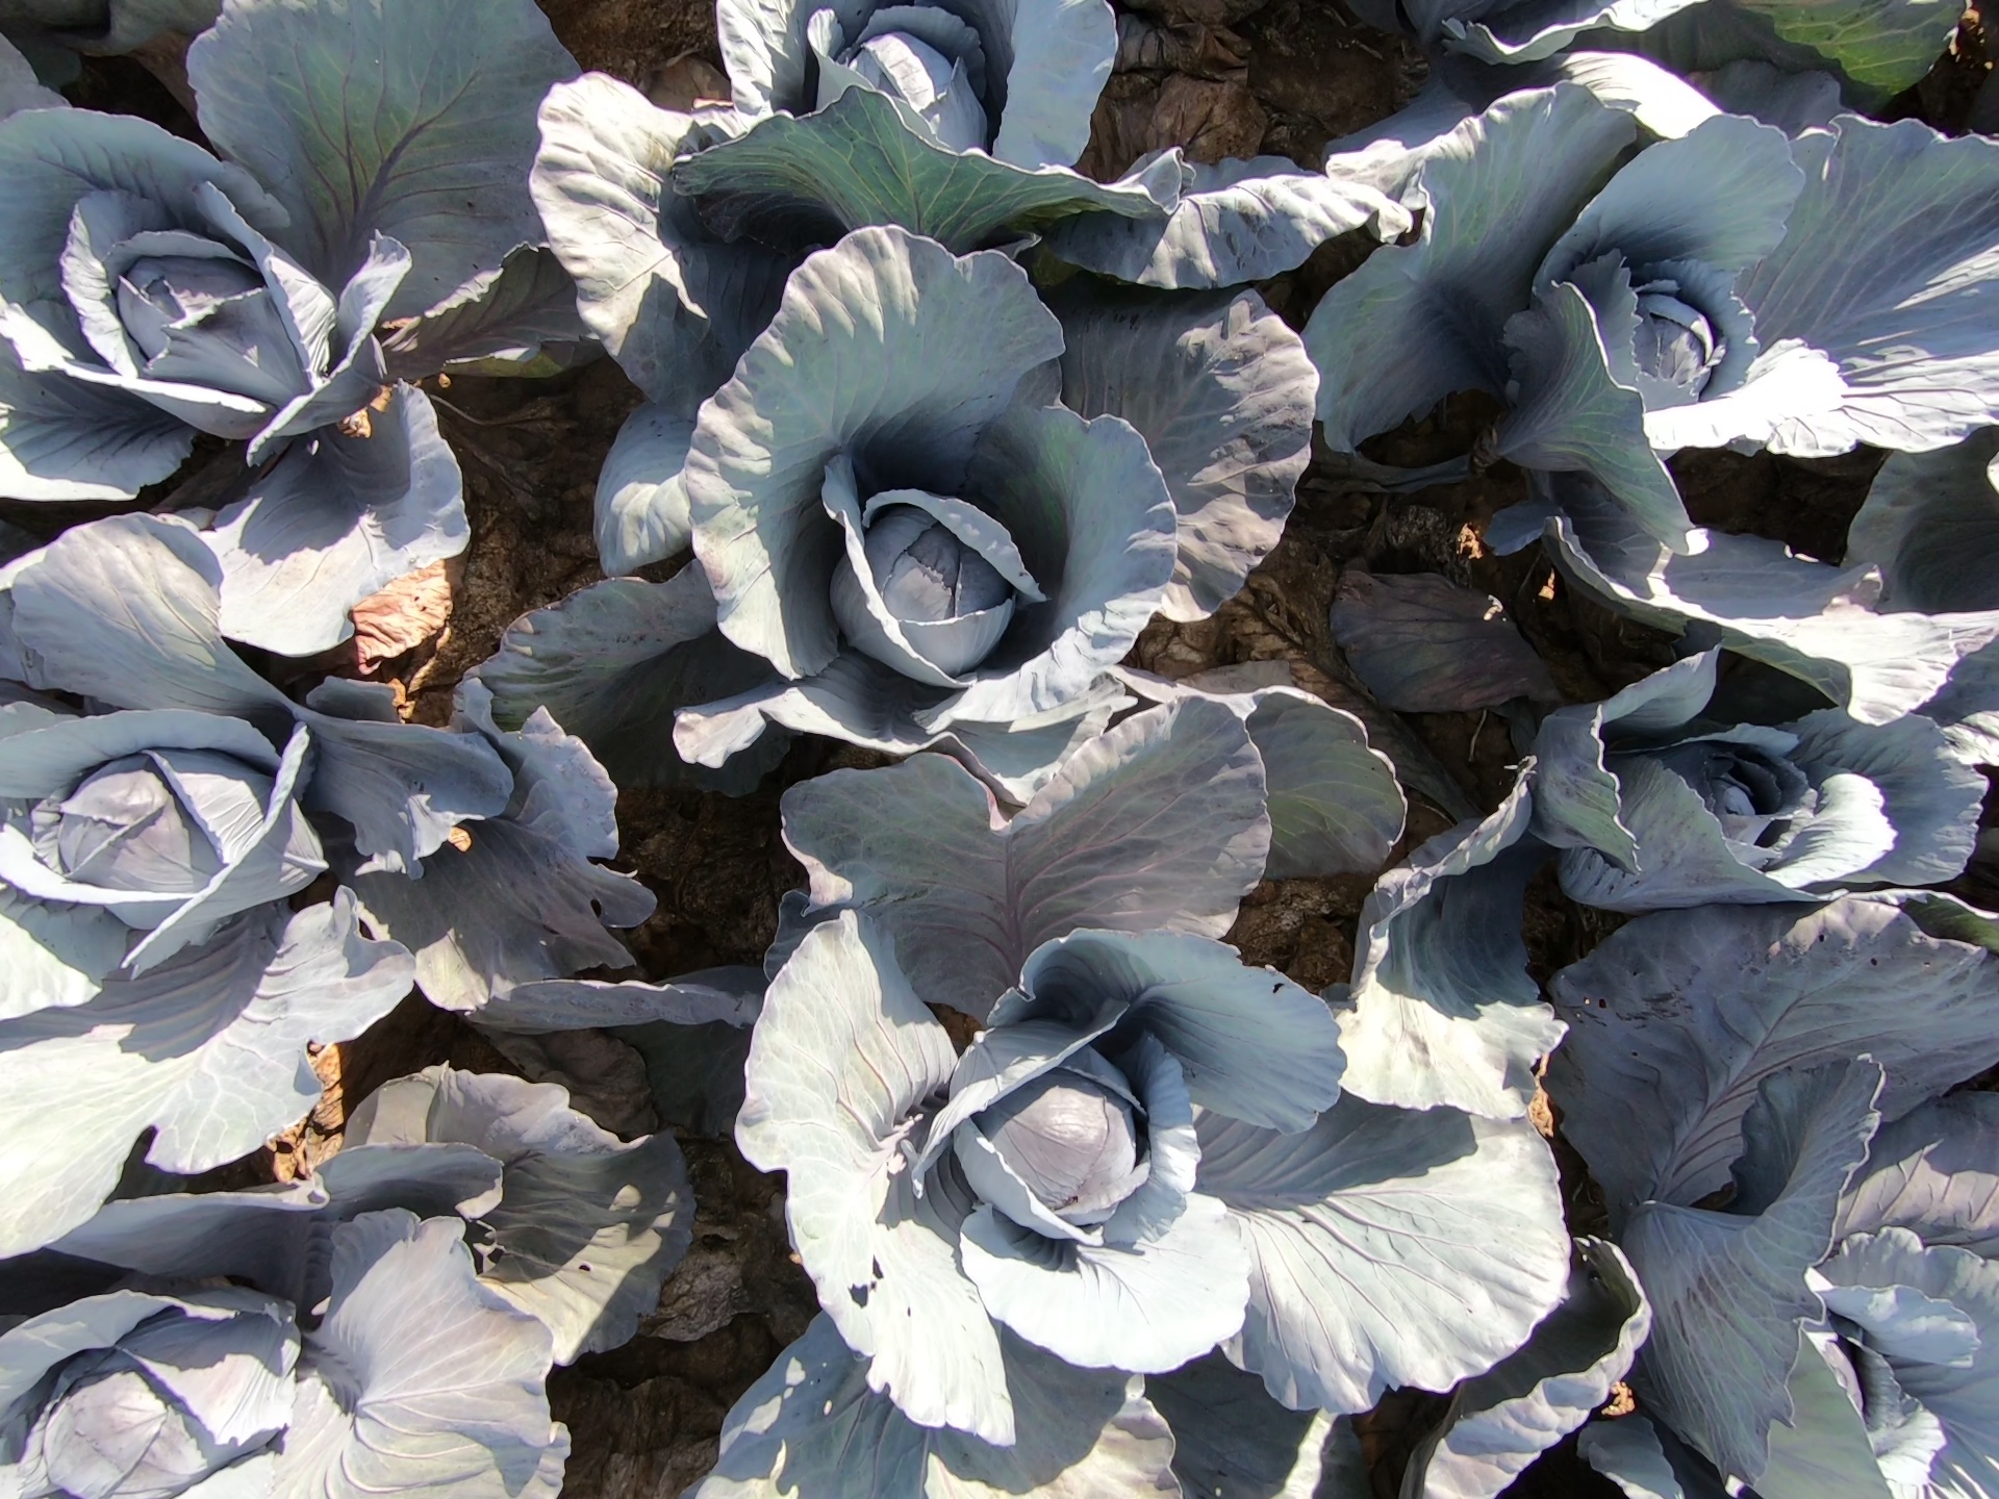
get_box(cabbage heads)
[1651,767,1755,874]
[46,1318,272,1498]
[956,1034,1137,1226]
[855,505,1015,660]
[1650,1243,1866,1479]
[59,753,290,919]
[120,248,281,384]
[834,29,975,176]
[1611,296,1722,424]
